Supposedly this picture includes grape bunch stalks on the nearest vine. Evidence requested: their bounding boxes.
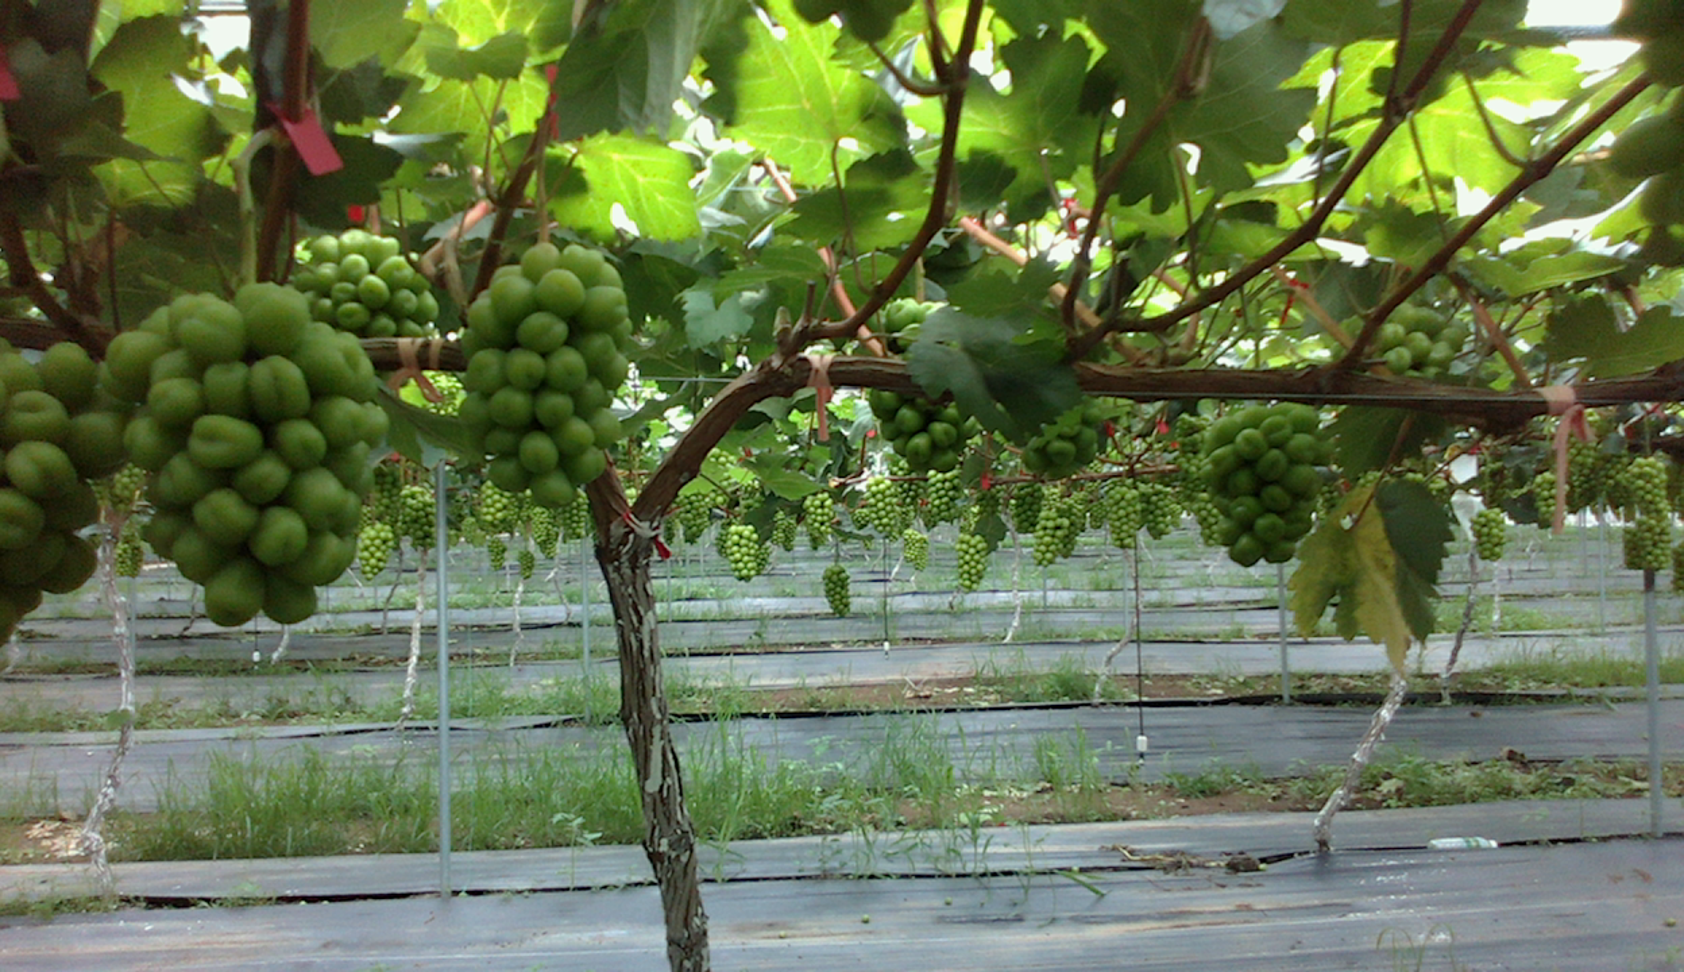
[534,117,548,243]
[233,128,275,286]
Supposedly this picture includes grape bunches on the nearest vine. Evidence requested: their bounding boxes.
[1,339,127,652]
[99,283,385,628]
[457,244,633,509]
